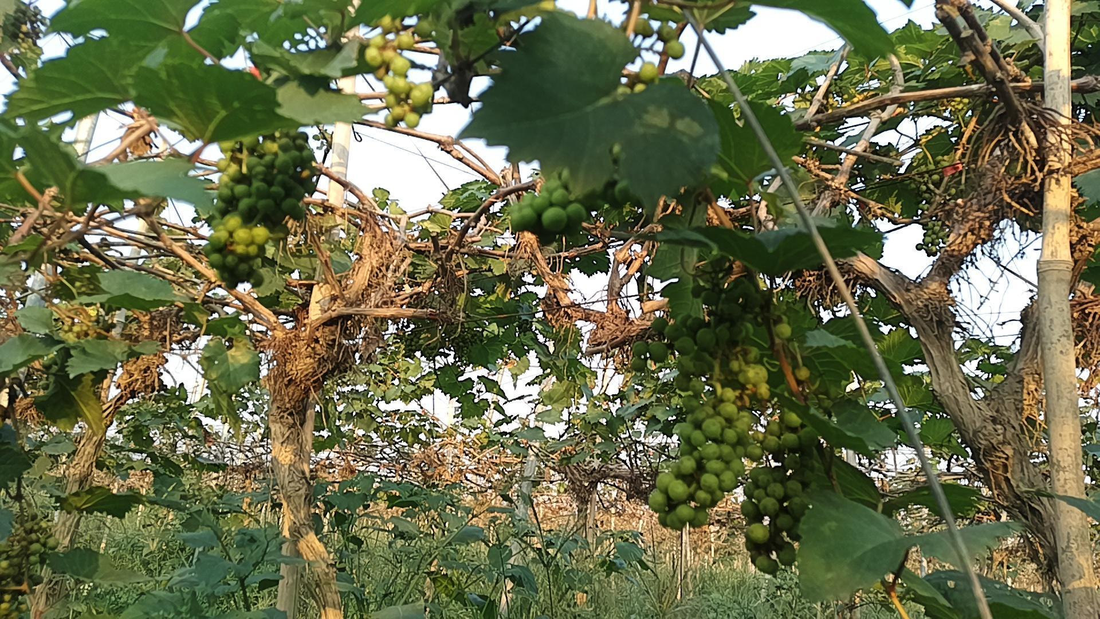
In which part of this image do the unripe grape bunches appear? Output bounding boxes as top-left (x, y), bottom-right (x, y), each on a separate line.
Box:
top-left (631, 280), bottom-right (769, 530)
top-left (741, 410), bottom-right (818, 574)
top-left (0, 507), bottom-right (58, 618)
top-left (511, 9), bottom-right (684, 234)
top-left (904, 154), bottom-right (956, 256)
top-left (364, 16), bottom-right (434, 128)
top-left (205, 132), bottom-right (316, 288)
